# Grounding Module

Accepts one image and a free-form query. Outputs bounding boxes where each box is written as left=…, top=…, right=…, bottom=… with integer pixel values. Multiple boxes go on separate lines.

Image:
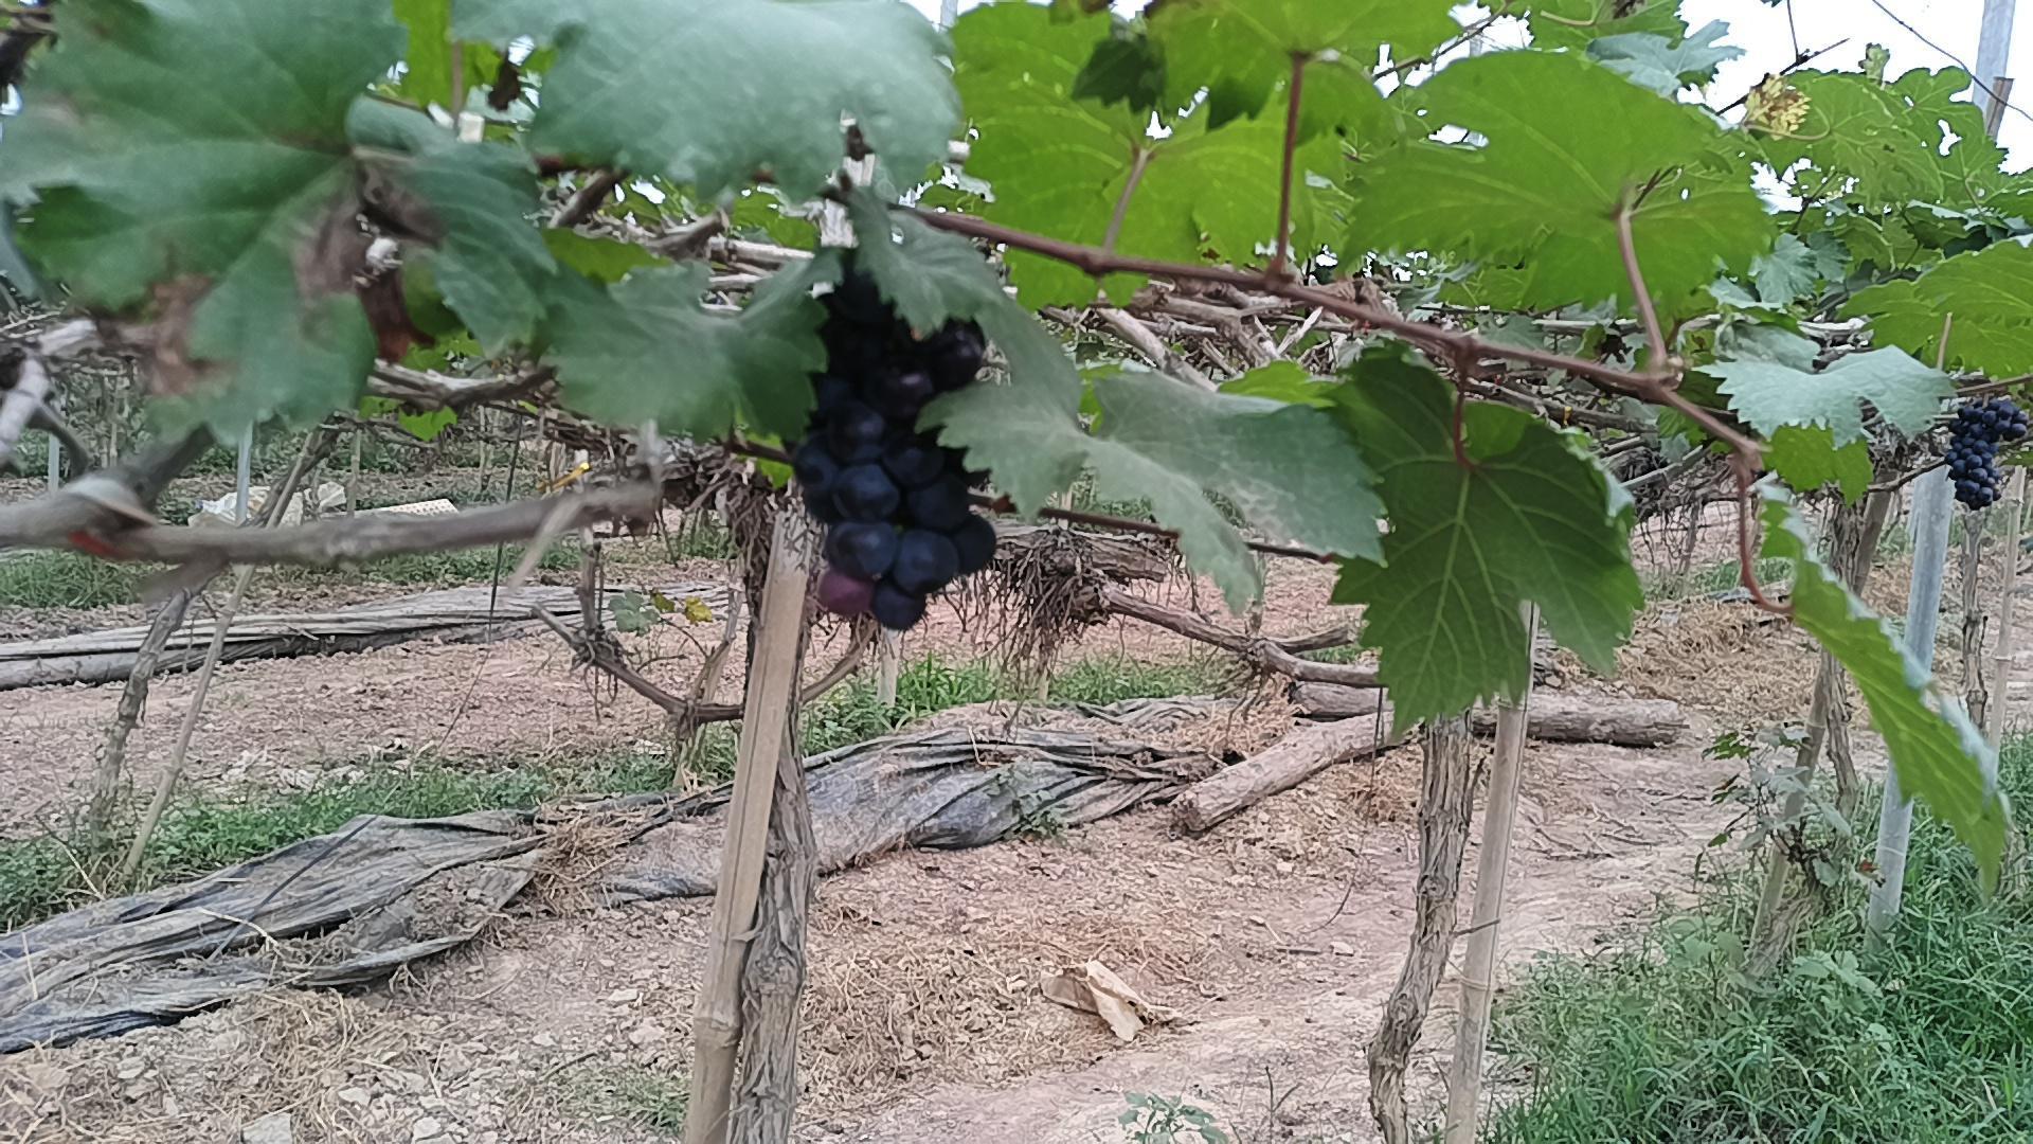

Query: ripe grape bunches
left=1944, top=395, right=2032, bottom=510
left=788, top=267, right=995, bottom=631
